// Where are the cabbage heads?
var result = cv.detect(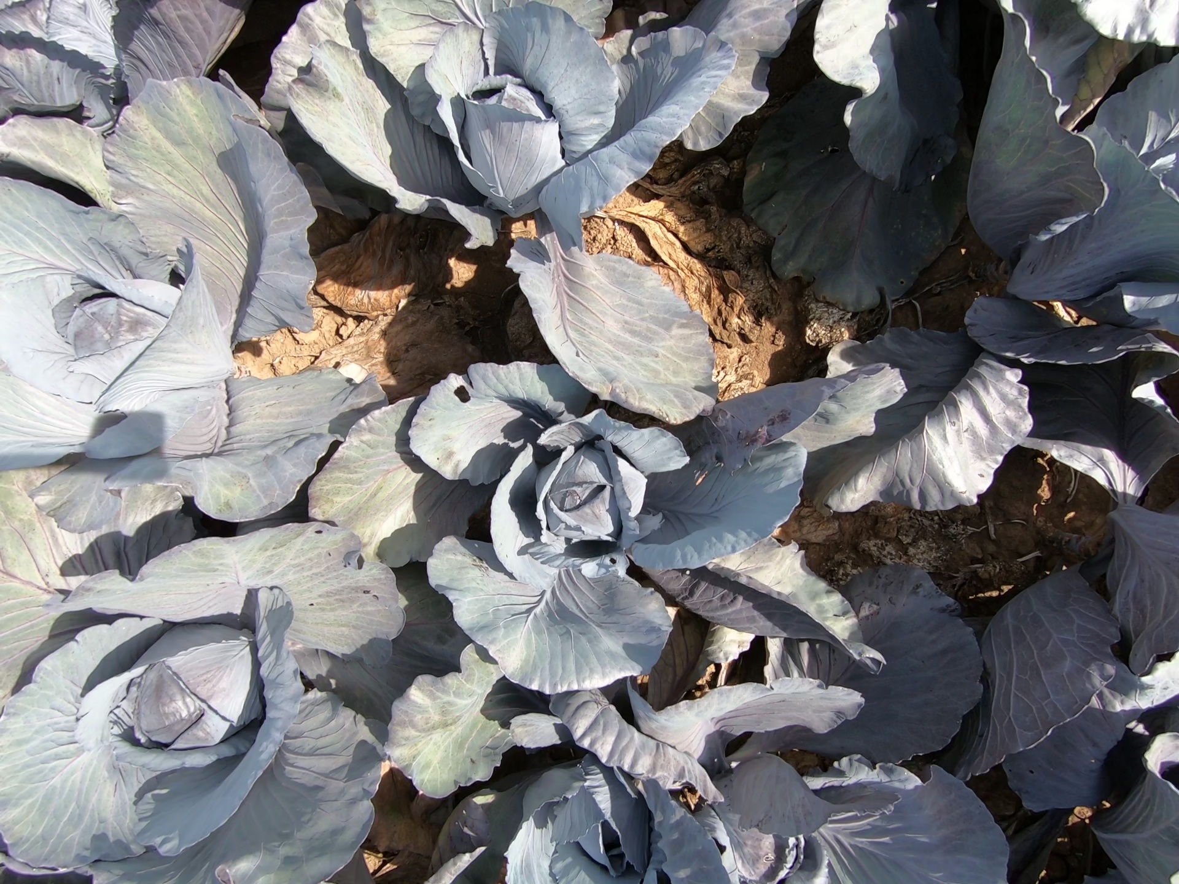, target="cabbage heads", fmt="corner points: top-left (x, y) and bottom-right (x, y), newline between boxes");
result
(705, 781), (804, 883)
(0, 2), (106, 100)
(572, 783), (645, 859)
(130, 627), (261, 749)
(537, 448), (648, 542)
(67, 284), (201, 387)
(466, 83), (565, 190)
